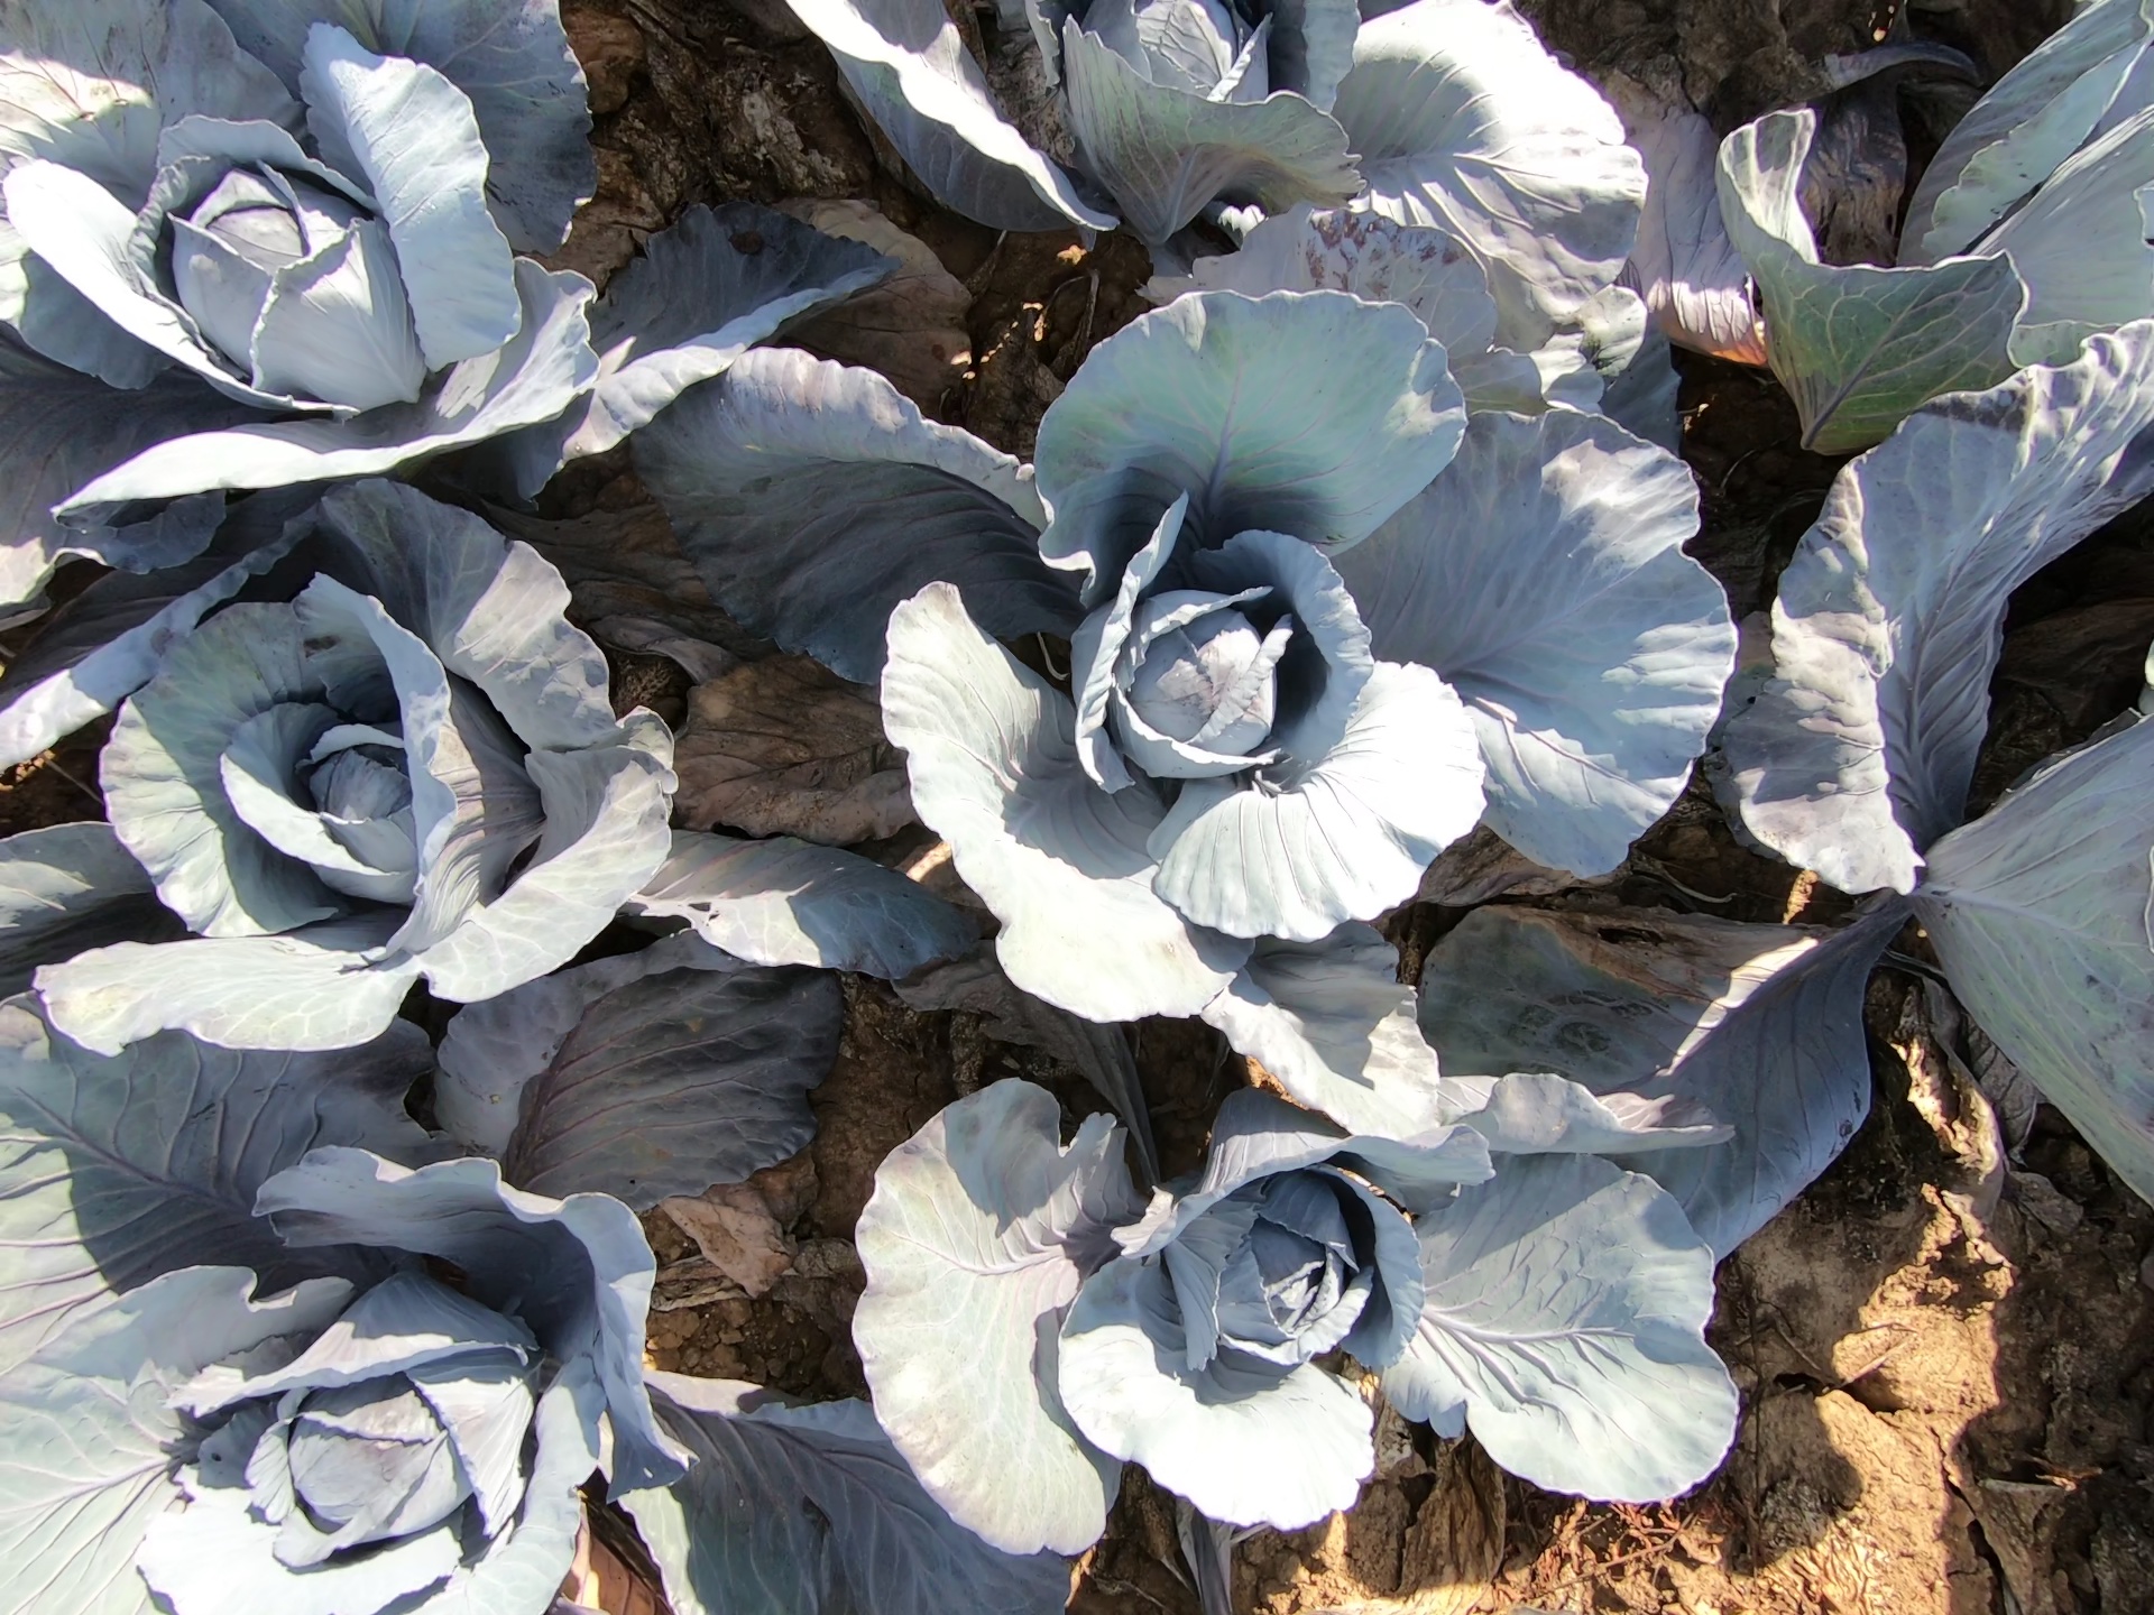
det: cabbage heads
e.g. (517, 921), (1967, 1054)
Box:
(1194, 1199), (1323, 1355)
(1117, 598), (1268, 767)
(177, 167), (408, 388)
(316, 721), (482, 894)
(1104, 2), (1260, 179)
(287, 1353), (524, 1530)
